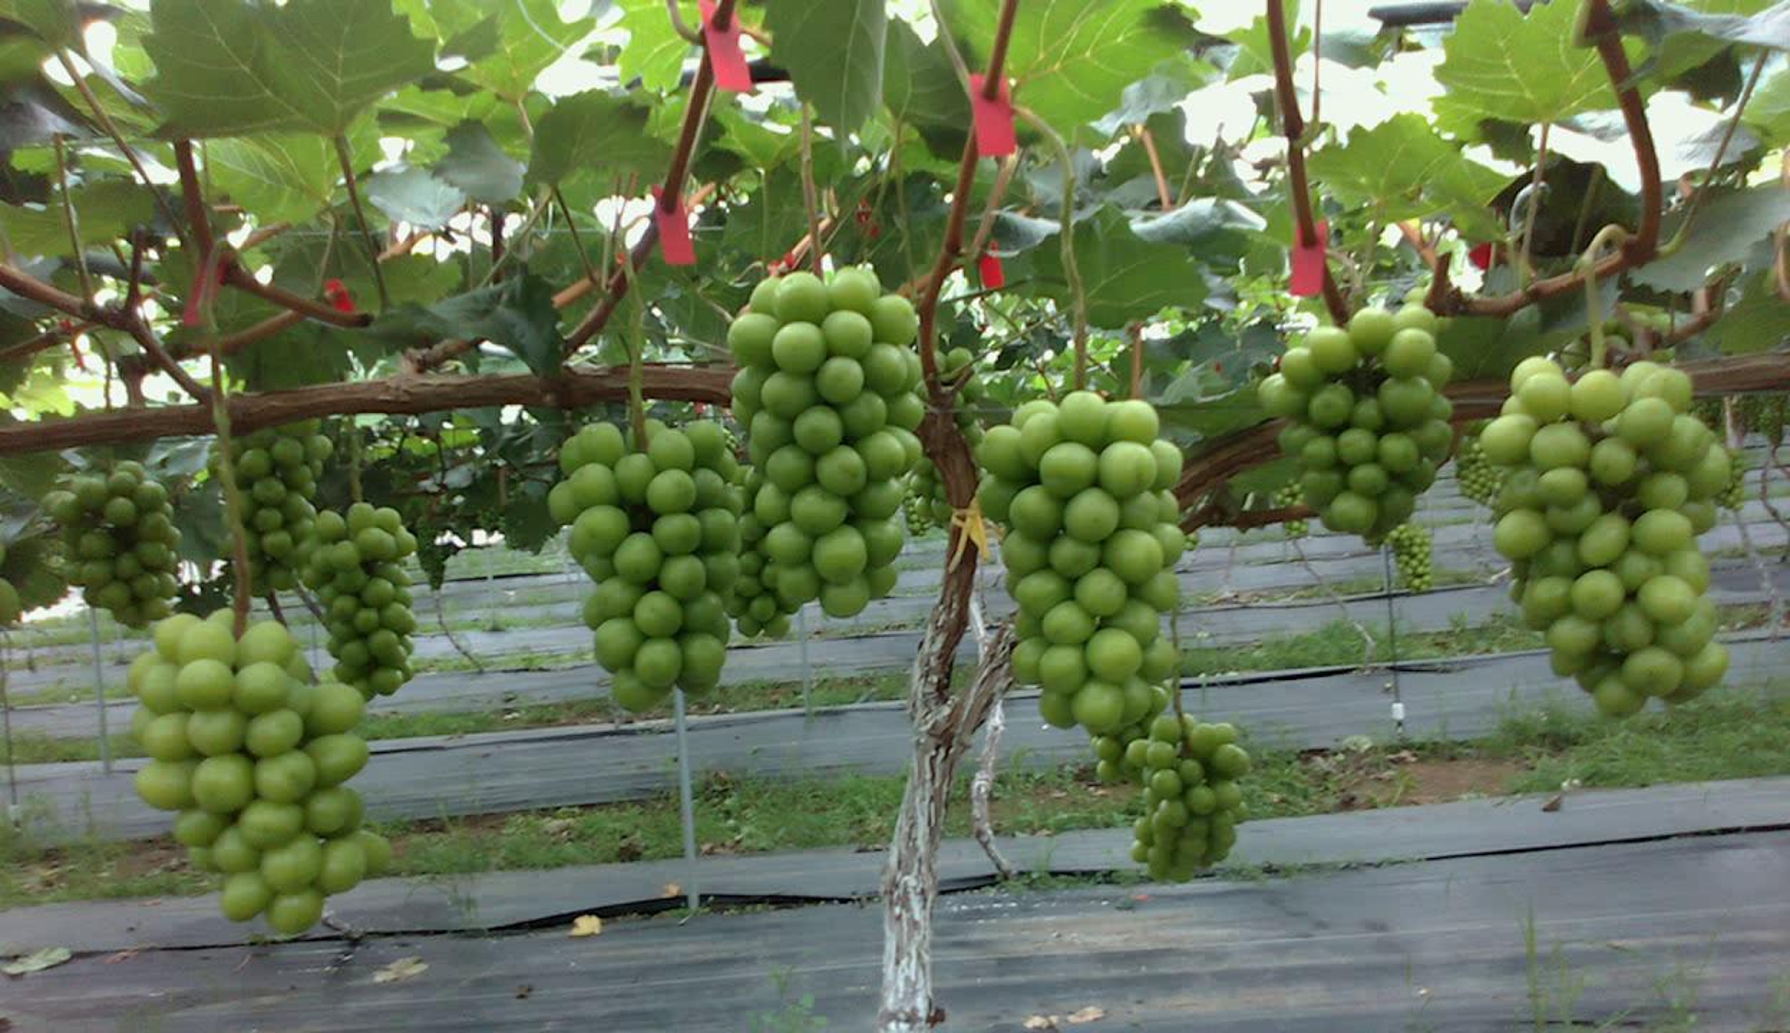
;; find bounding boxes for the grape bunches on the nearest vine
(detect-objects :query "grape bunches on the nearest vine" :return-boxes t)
[129,608,389,937]
[1256,307,1453,538]
[727,268,924,618]
[977,392,1185,735]
[1480,357,1731,719]
[546,419,743,714]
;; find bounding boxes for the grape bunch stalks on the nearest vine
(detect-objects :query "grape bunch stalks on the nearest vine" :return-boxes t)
[1015,106,1087,387]
[799,103,823,278]
[1328,248,1364,310]
[1573,224,1624,367]
[618,215,647,449]
[195,241,248,637]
